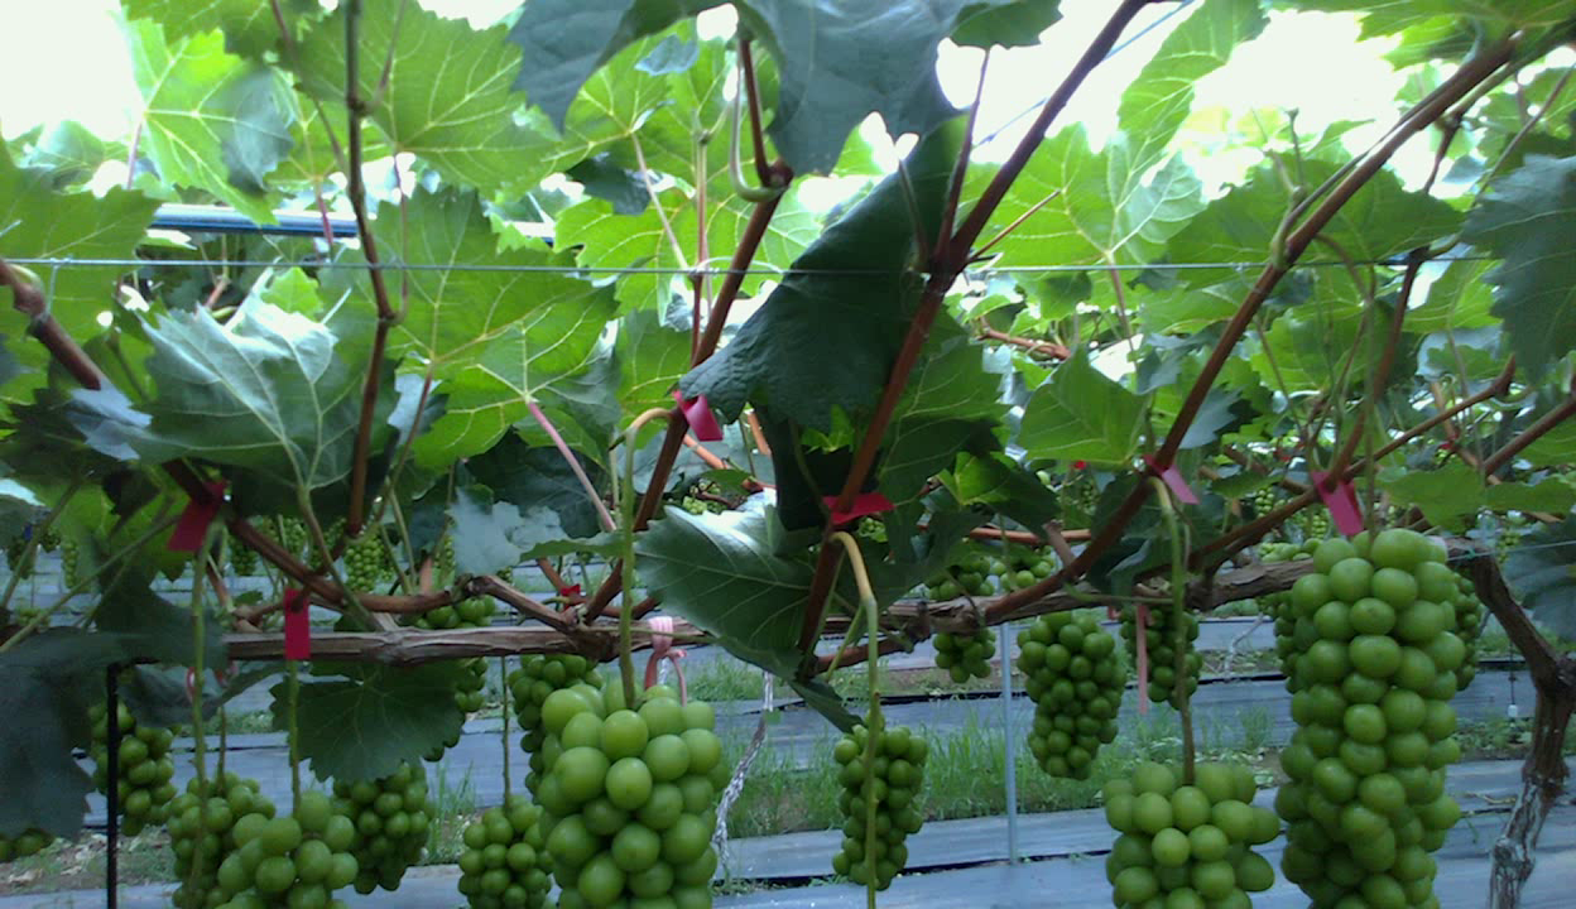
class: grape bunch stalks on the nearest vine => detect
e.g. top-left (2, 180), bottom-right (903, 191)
top-left (289, 662), bottom-right (301, 813)
top-left (1364, 268), bottom-right (1379, 557)
top-left (1150, 477), bottom-right (1195, 787)
top-left (620, 409), bottom-right (668, 711)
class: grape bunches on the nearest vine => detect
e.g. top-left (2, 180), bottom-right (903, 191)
top-left (1274, 528), bottom-right (1465, 908)
top-left (537, 679), bottom-right (732, 906)
top-left (217, 789), bottom-right (357, 908)
top-left (1102, 760), bottom-right (1280, 908)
